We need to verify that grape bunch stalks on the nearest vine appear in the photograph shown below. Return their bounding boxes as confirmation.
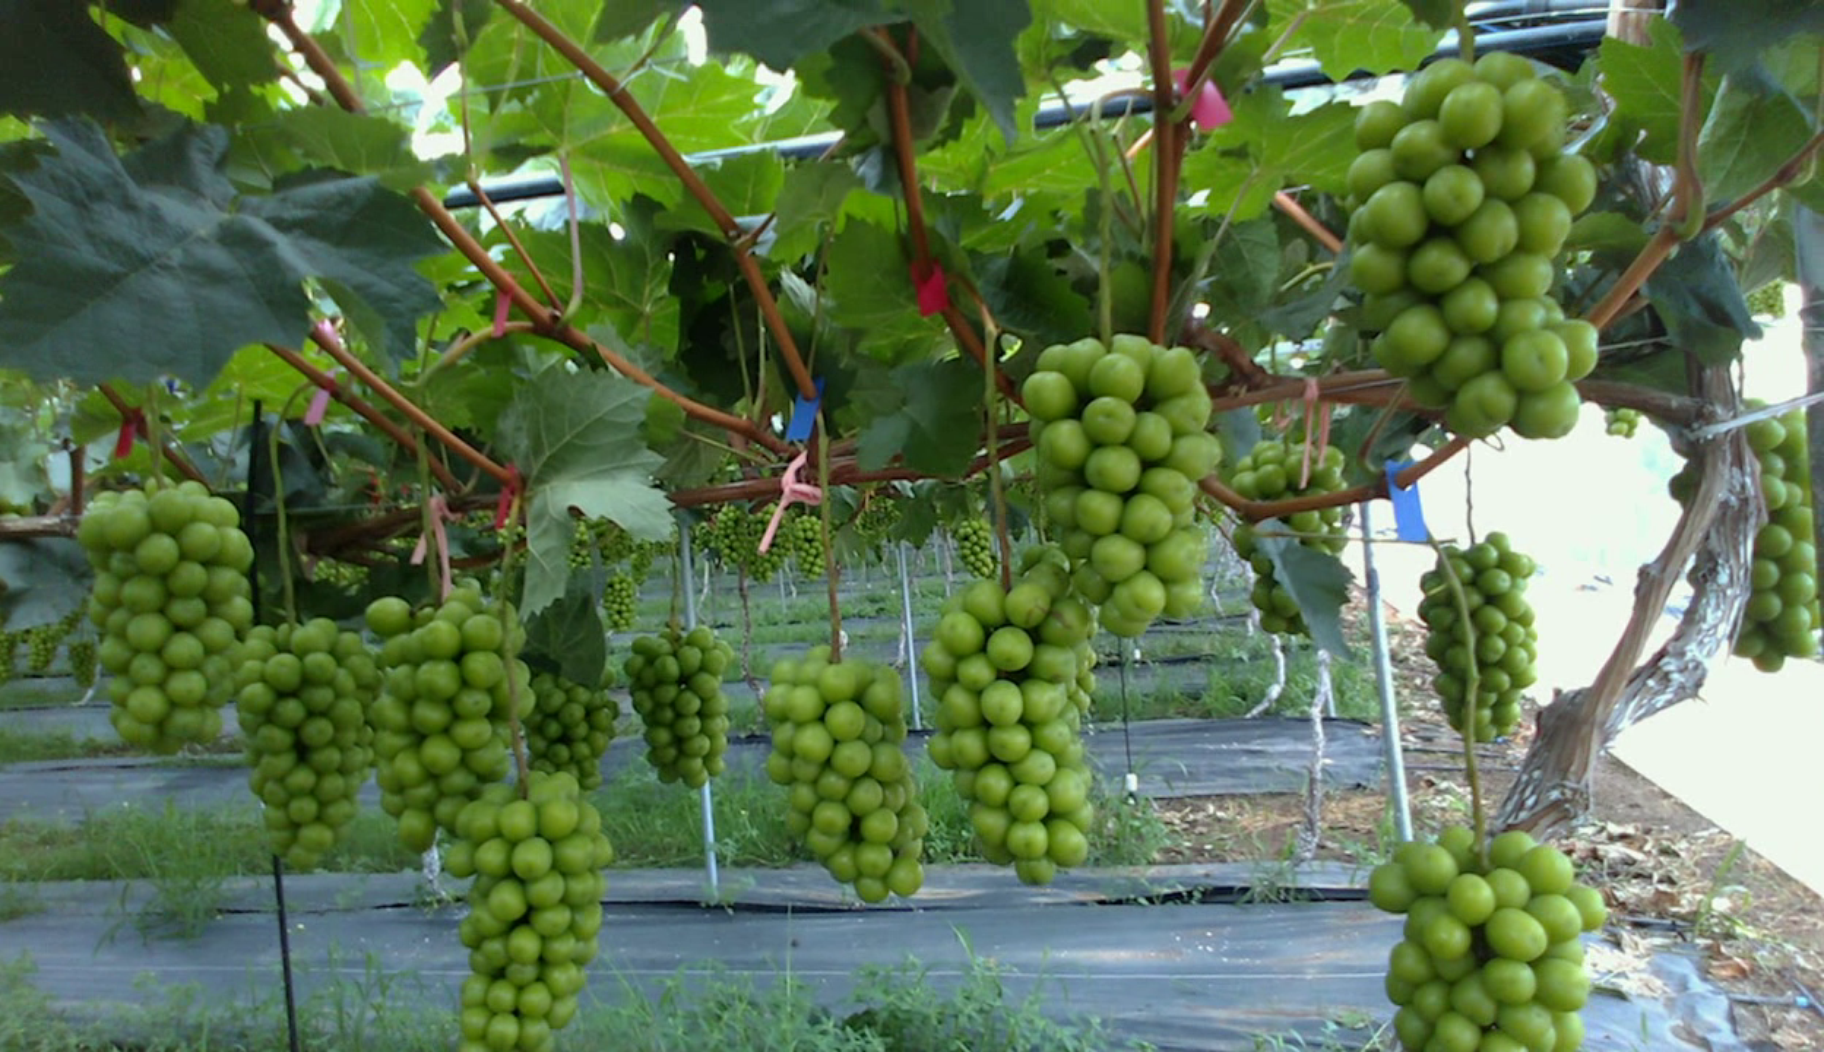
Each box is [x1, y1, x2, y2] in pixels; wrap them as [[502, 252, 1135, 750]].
[[146, 383, 165, 487], [1087, 88, 1153, 354], [498, 495, 529, 801], [1428, 533, 1491, 875], [816, 411, 842, 662], [944, 273, 1010, 590], [269, 381, 316, 630], [415, 427, 441, 608], [1454, 13, 1475, 63]]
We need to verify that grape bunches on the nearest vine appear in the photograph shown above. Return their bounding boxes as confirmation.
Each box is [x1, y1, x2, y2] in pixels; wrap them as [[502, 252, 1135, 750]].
[[1022, 335, 1223, 637], [764, 646, 928, 902], [1368, 827, 1605, 1051], [924, 560, 1095, 885], [443, 771, 611, 1051], [365, 589, 510, 855], [235, 618, 377, 868], [77, 479, 254, 757], [1343, 50, 1599, 438]]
